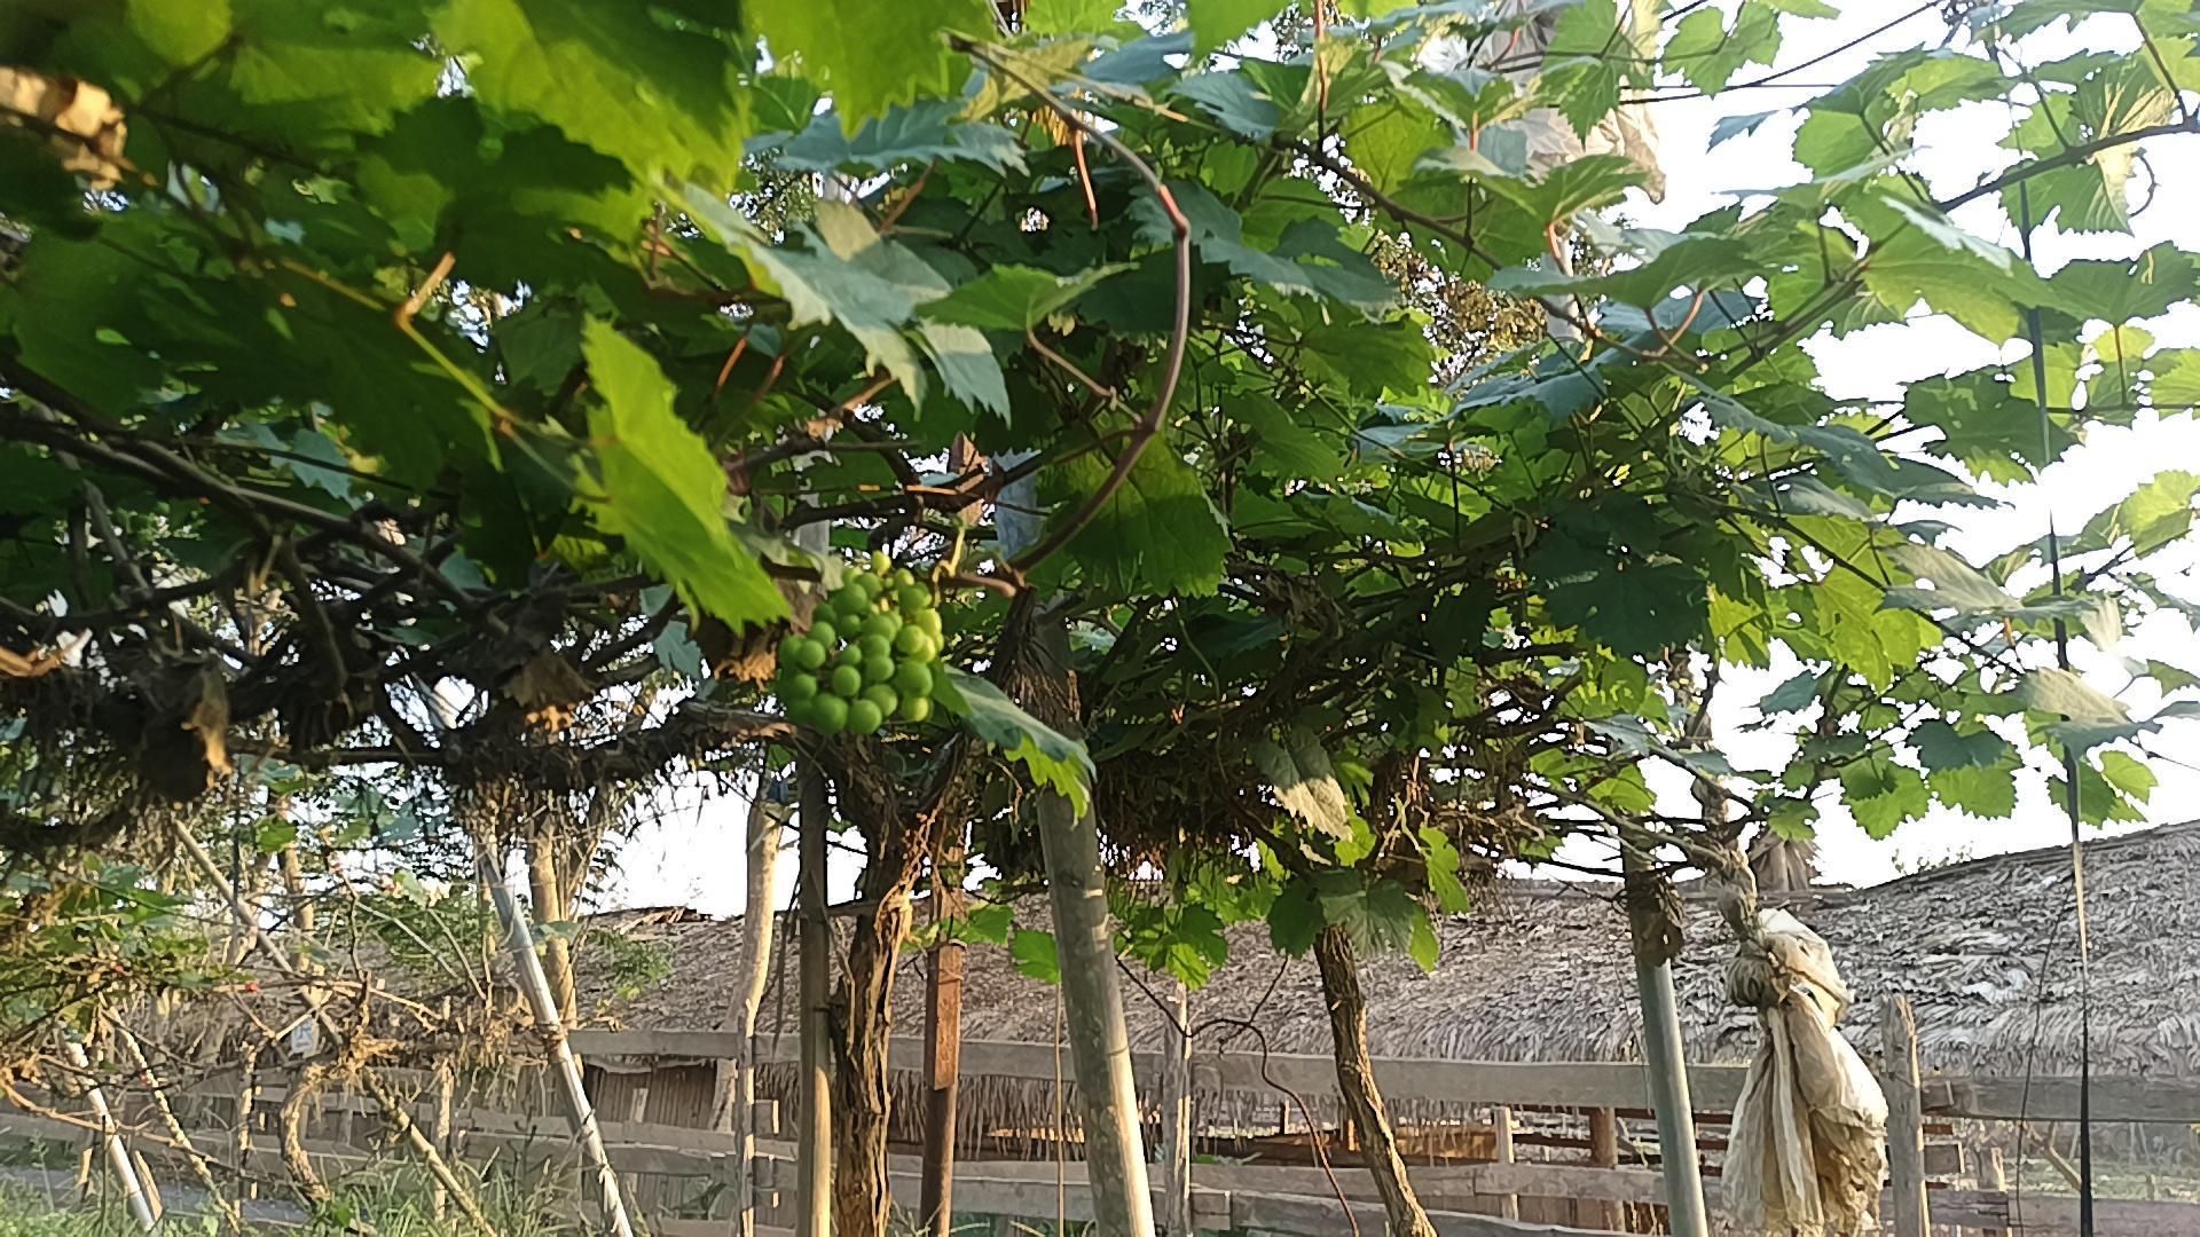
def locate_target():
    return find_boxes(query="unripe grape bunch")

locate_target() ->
[771,552,942,733]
